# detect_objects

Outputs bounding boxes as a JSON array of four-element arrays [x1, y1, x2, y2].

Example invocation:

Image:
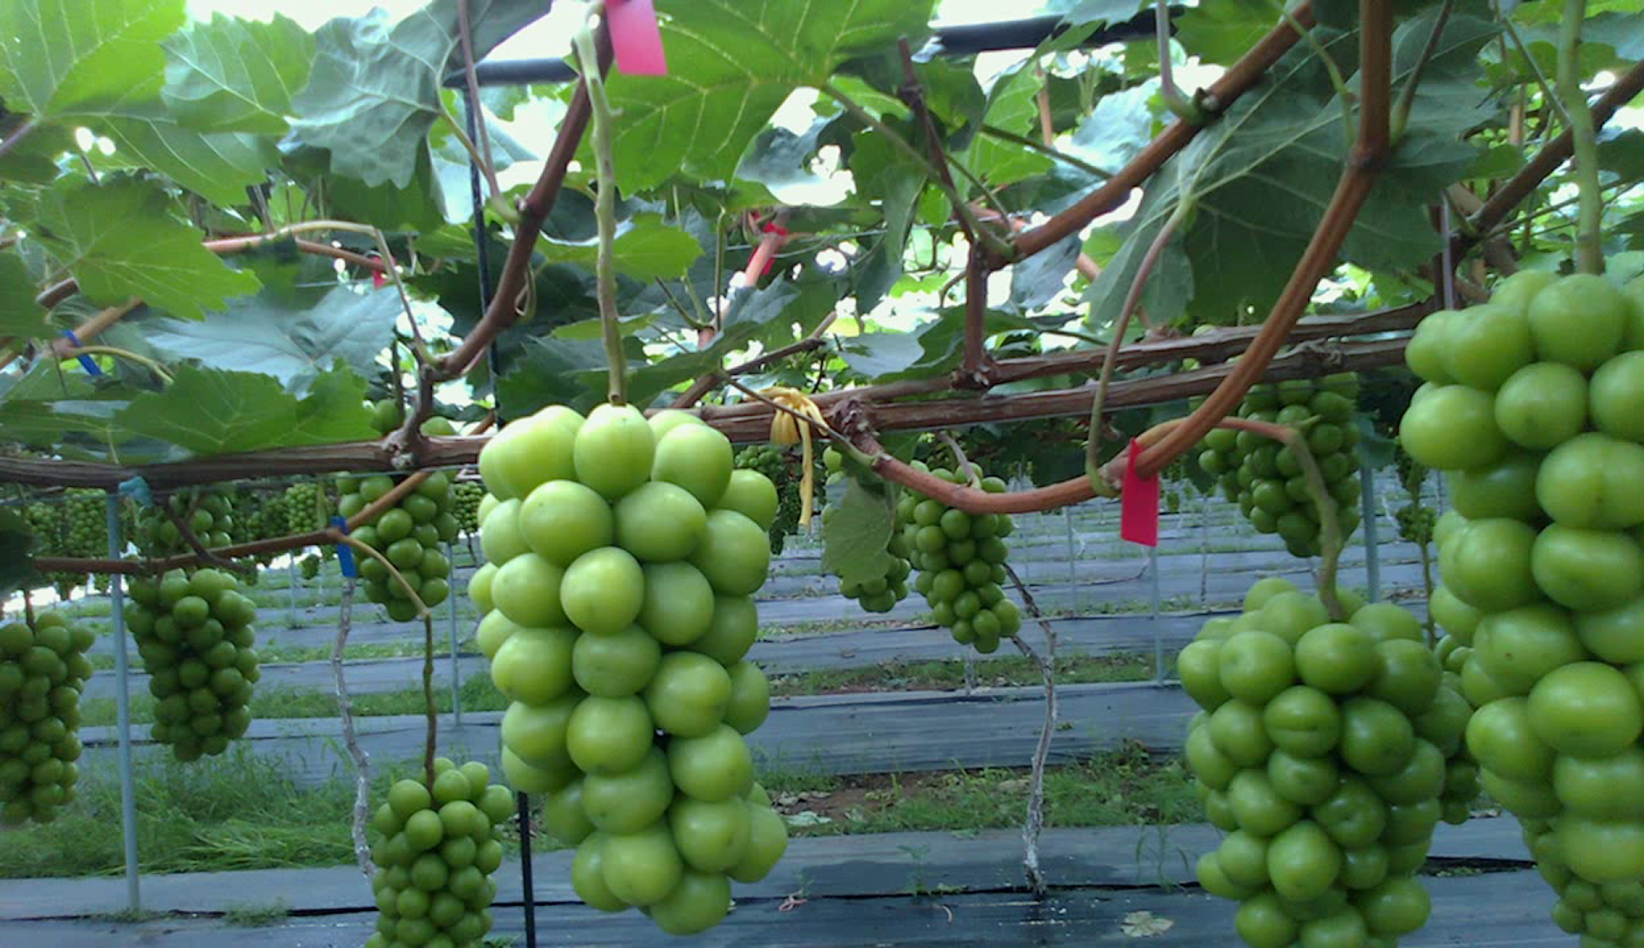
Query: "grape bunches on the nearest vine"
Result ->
[[1172, 574, 1470, 947], [469, 406, 790, 935], [1395, 269, 1643, 891]]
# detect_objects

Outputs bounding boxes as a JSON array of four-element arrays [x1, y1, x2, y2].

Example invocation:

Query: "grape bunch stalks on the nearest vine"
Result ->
[[577, 30, 626, 404], [1554, 1, 1603, 267], [1136, 415, 1341, 614]]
